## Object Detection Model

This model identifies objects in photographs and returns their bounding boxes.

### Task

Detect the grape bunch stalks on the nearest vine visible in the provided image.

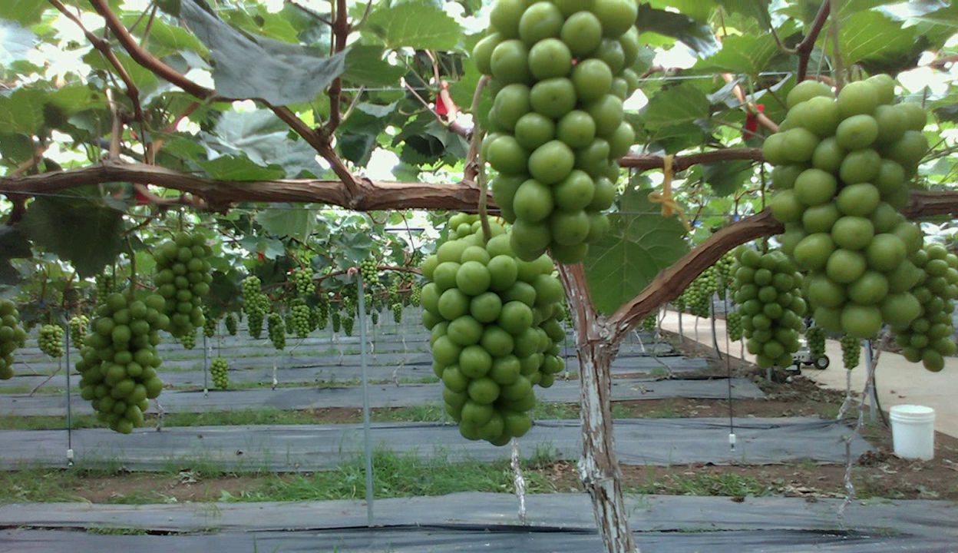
[831,5,844,94]
[471,75,491,245]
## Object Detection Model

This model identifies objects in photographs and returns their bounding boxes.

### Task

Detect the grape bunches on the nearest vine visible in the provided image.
[474,0,640,265]
[420,221,563,446]
[762,74,929,339]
